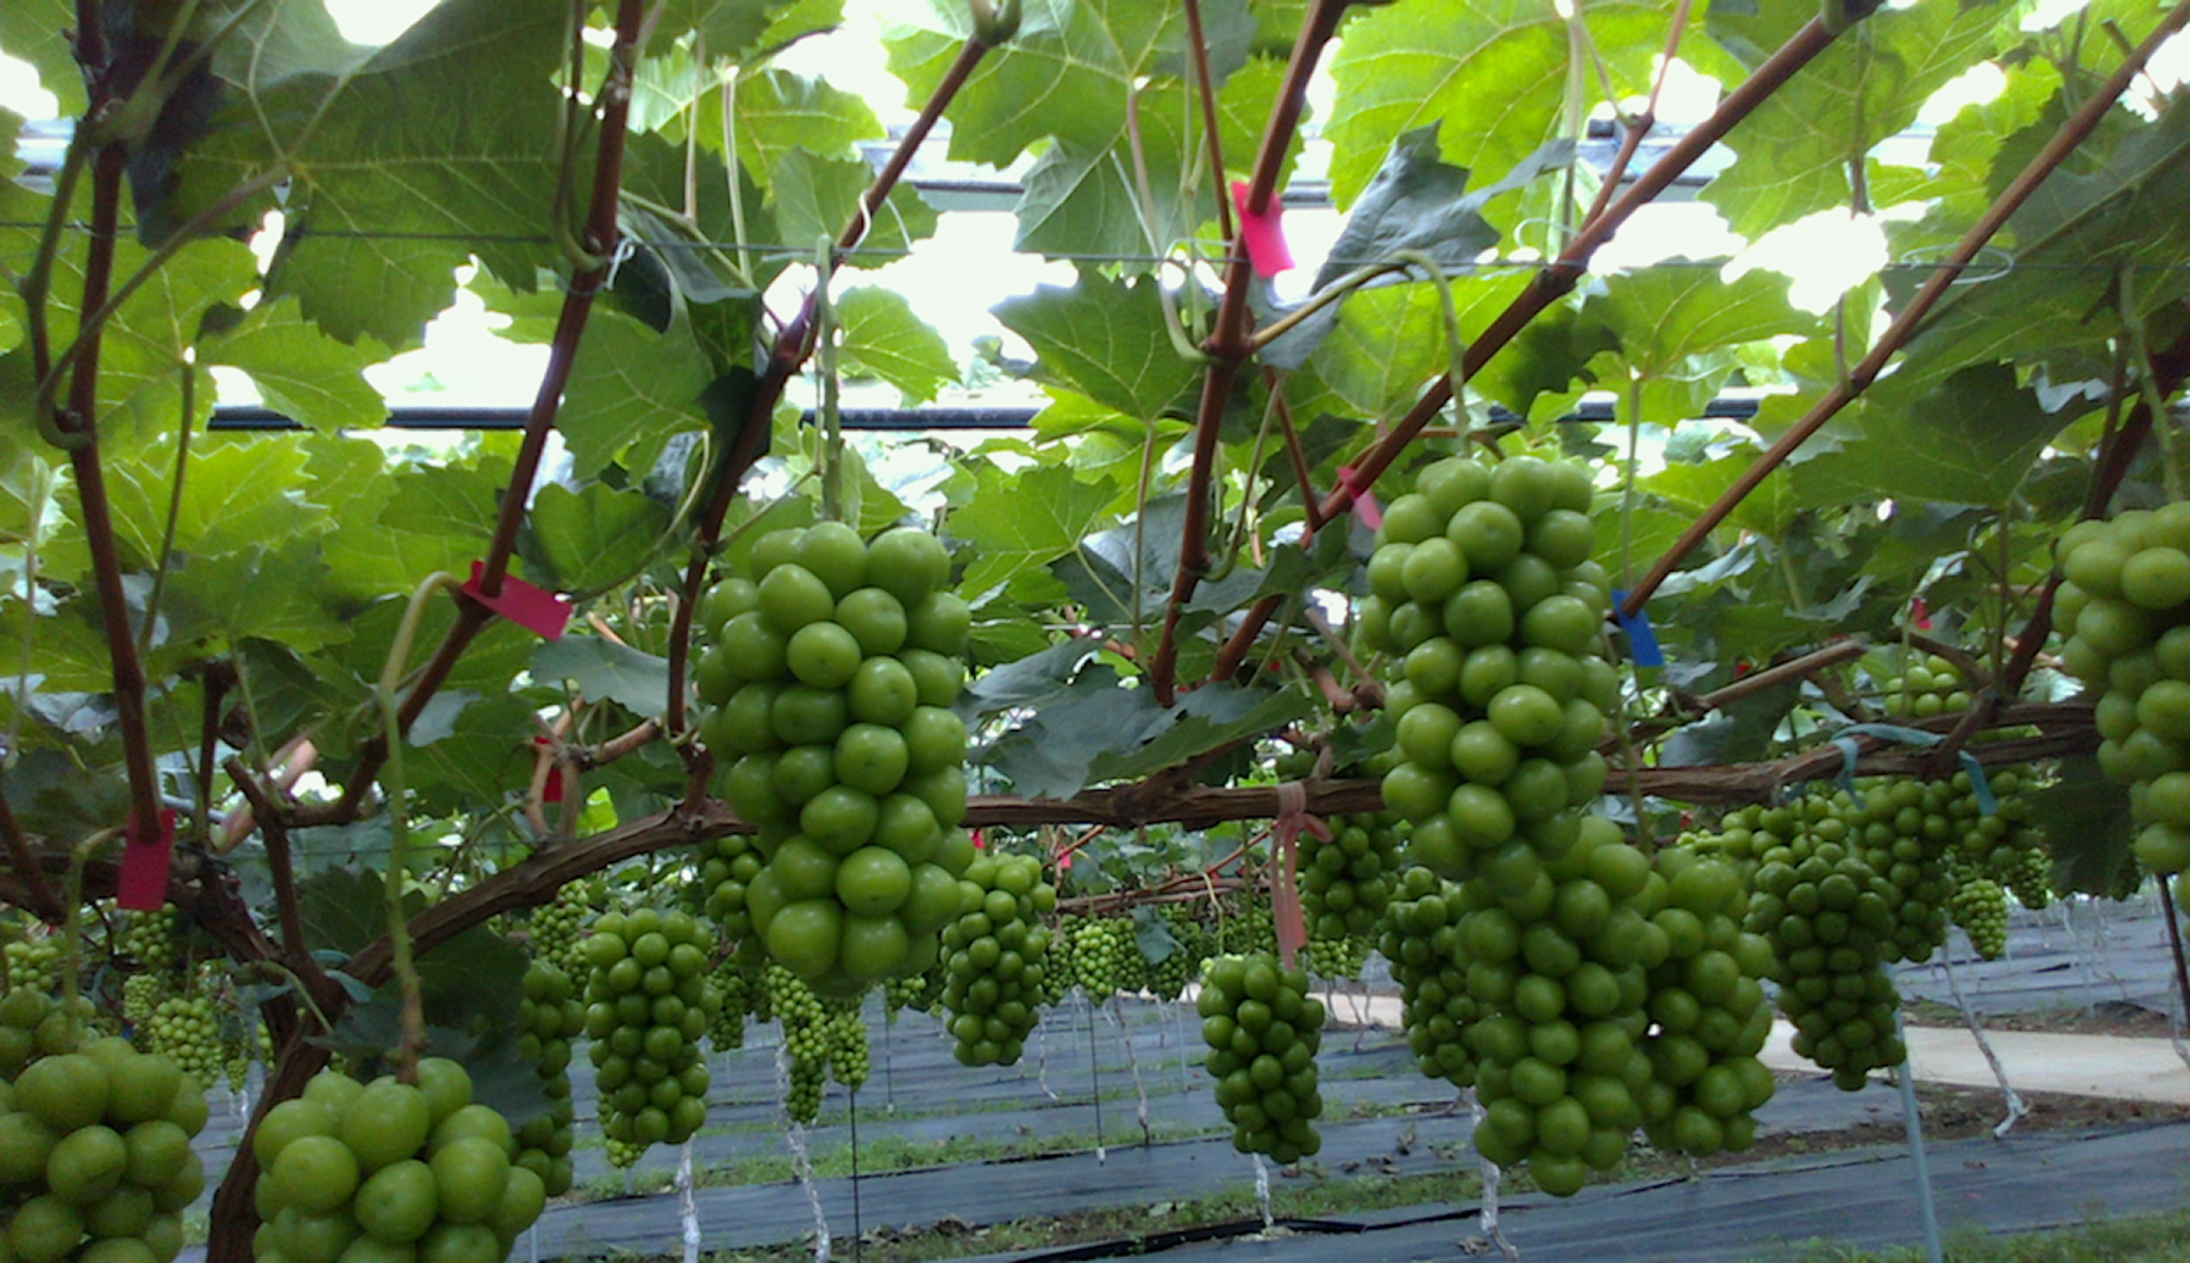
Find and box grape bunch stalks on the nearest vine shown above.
[377,572,465,1088]
[63,821,128,1052]
[1249,246,1472,458]
[816,230,842,523]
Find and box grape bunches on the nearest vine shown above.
[2,1037,205,1261]
[1356,454,1616,895]
[698,523,972,1000]
[1455,814,1671,1196]
[2050,498,2188,917]
[1646,849,1771,1152]
[249,1054,542,1261]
